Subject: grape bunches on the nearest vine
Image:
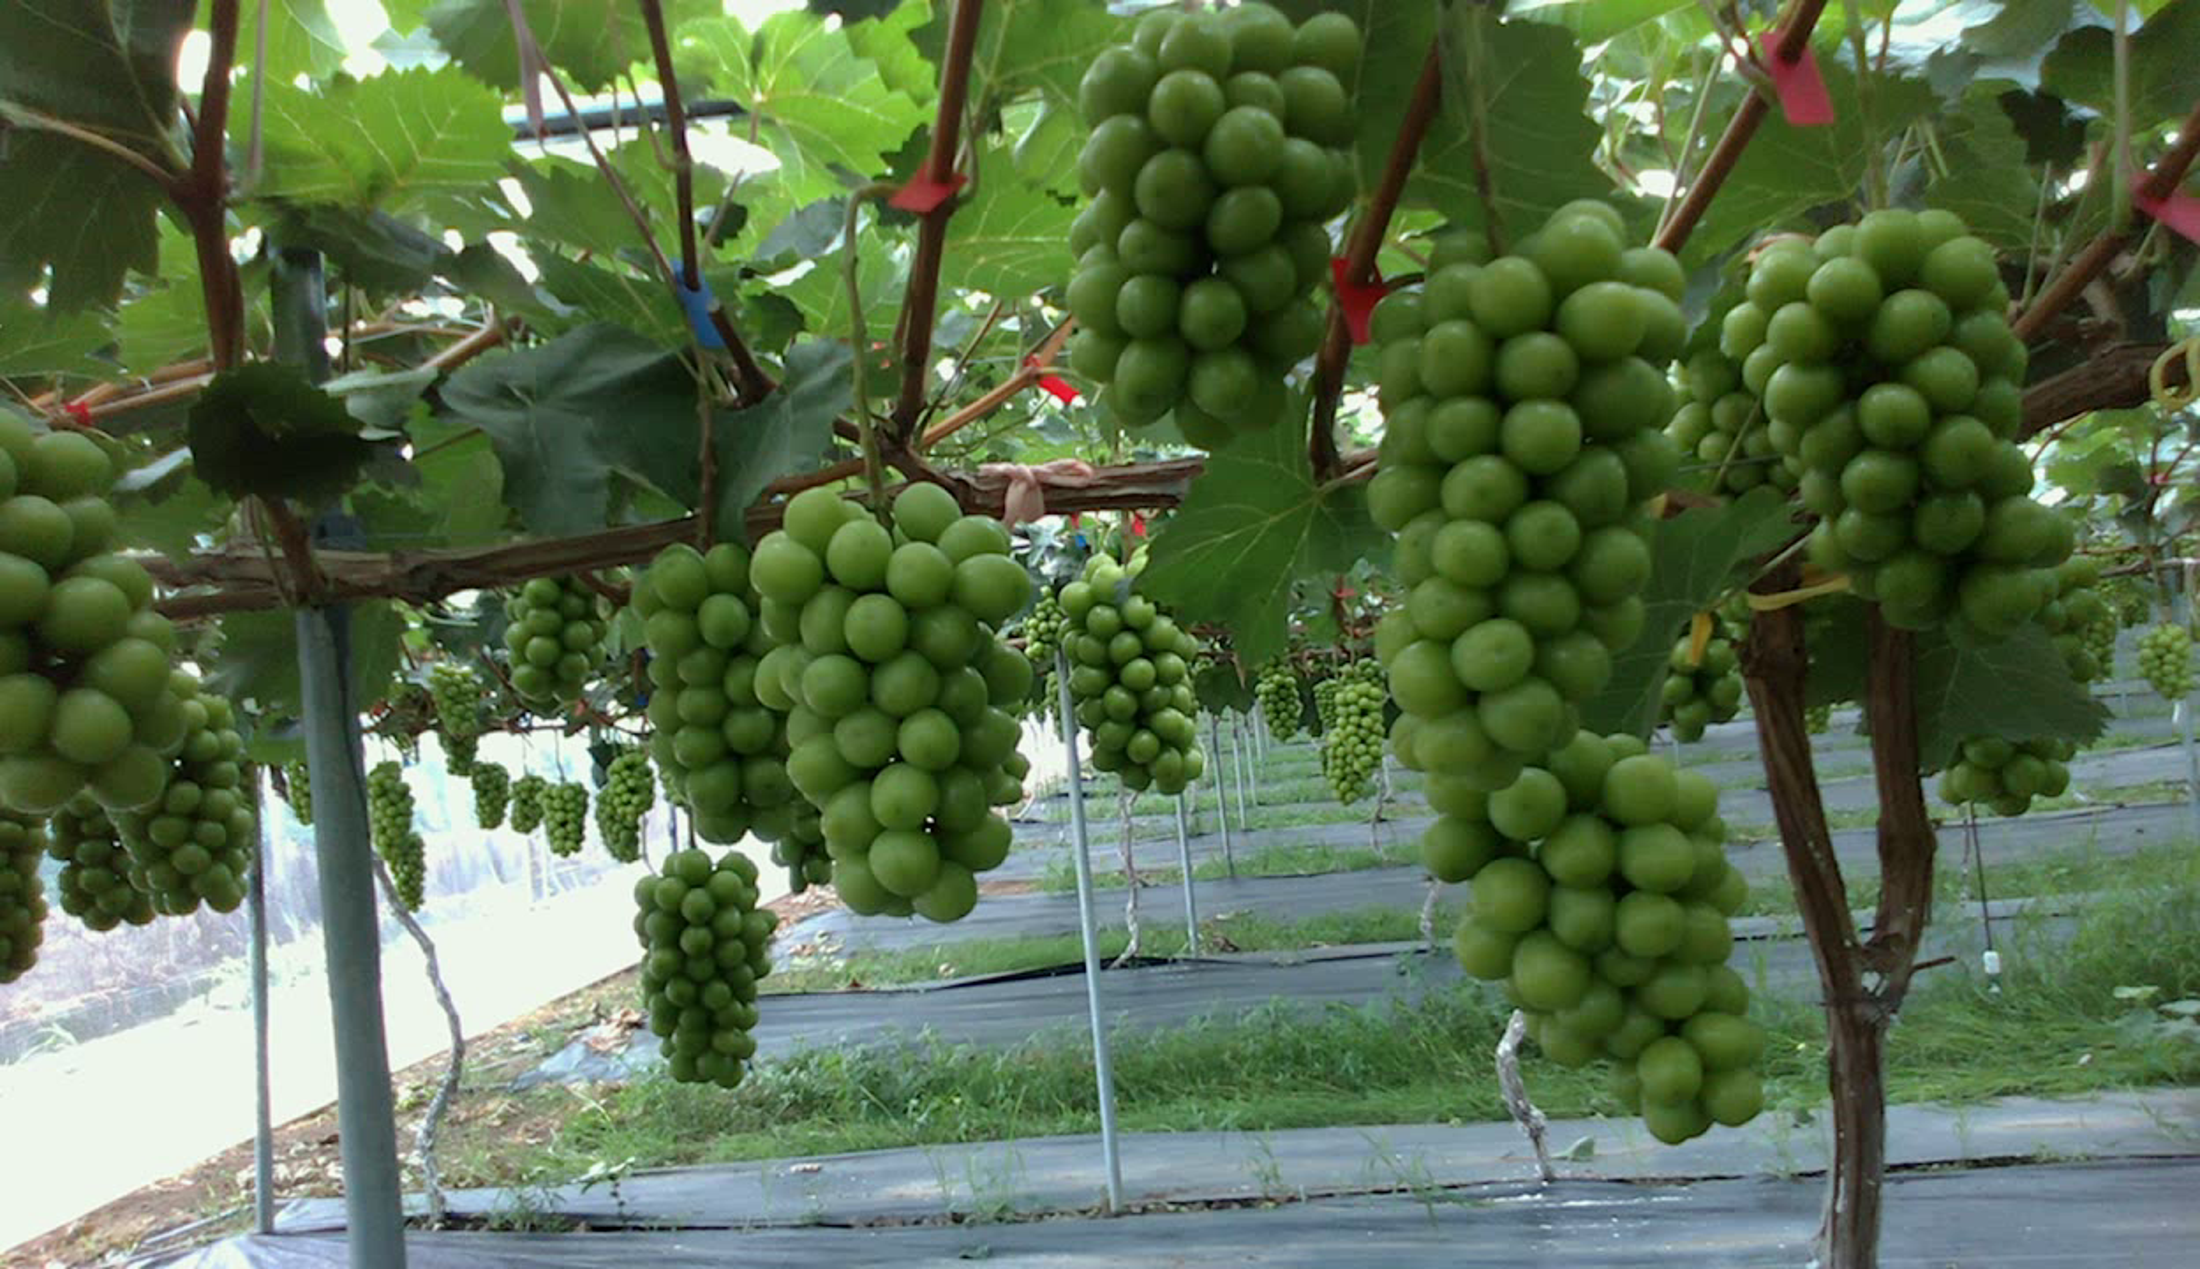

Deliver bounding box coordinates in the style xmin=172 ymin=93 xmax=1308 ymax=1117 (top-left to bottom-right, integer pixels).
xmin=1722 ymin=206 xmax=2073 ymax=649
xmin=1065 ymin=4 xmax=1361 ymax=453
xmin=1368 ymin=199 xmax=1687 ymax=797
xmin=751 ymin=483 xmax=1033 ymax=920
xmin=0 ymin=409 xmax=185 ymax=813
xmin=1416 ymin=730 xmax=1770 ymax=1146
xmin=633 ymin=541 xmax=795 ymax=850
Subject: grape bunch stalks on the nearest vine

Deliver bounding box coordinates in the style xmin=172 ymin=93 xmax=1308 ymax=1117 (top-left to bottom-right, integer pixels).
xmin=695 ymin=354 xmax=716 ymax=550
xmin=1846 ymin=23 xmax=1886 ymax=204
xmin=1181 ymin=2 xmax=1204 ymax=14
xmin=841 ymin=182 xmax=894 ymax=529
xmin=1472 ymin=118 xmax=1509 ymax=259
